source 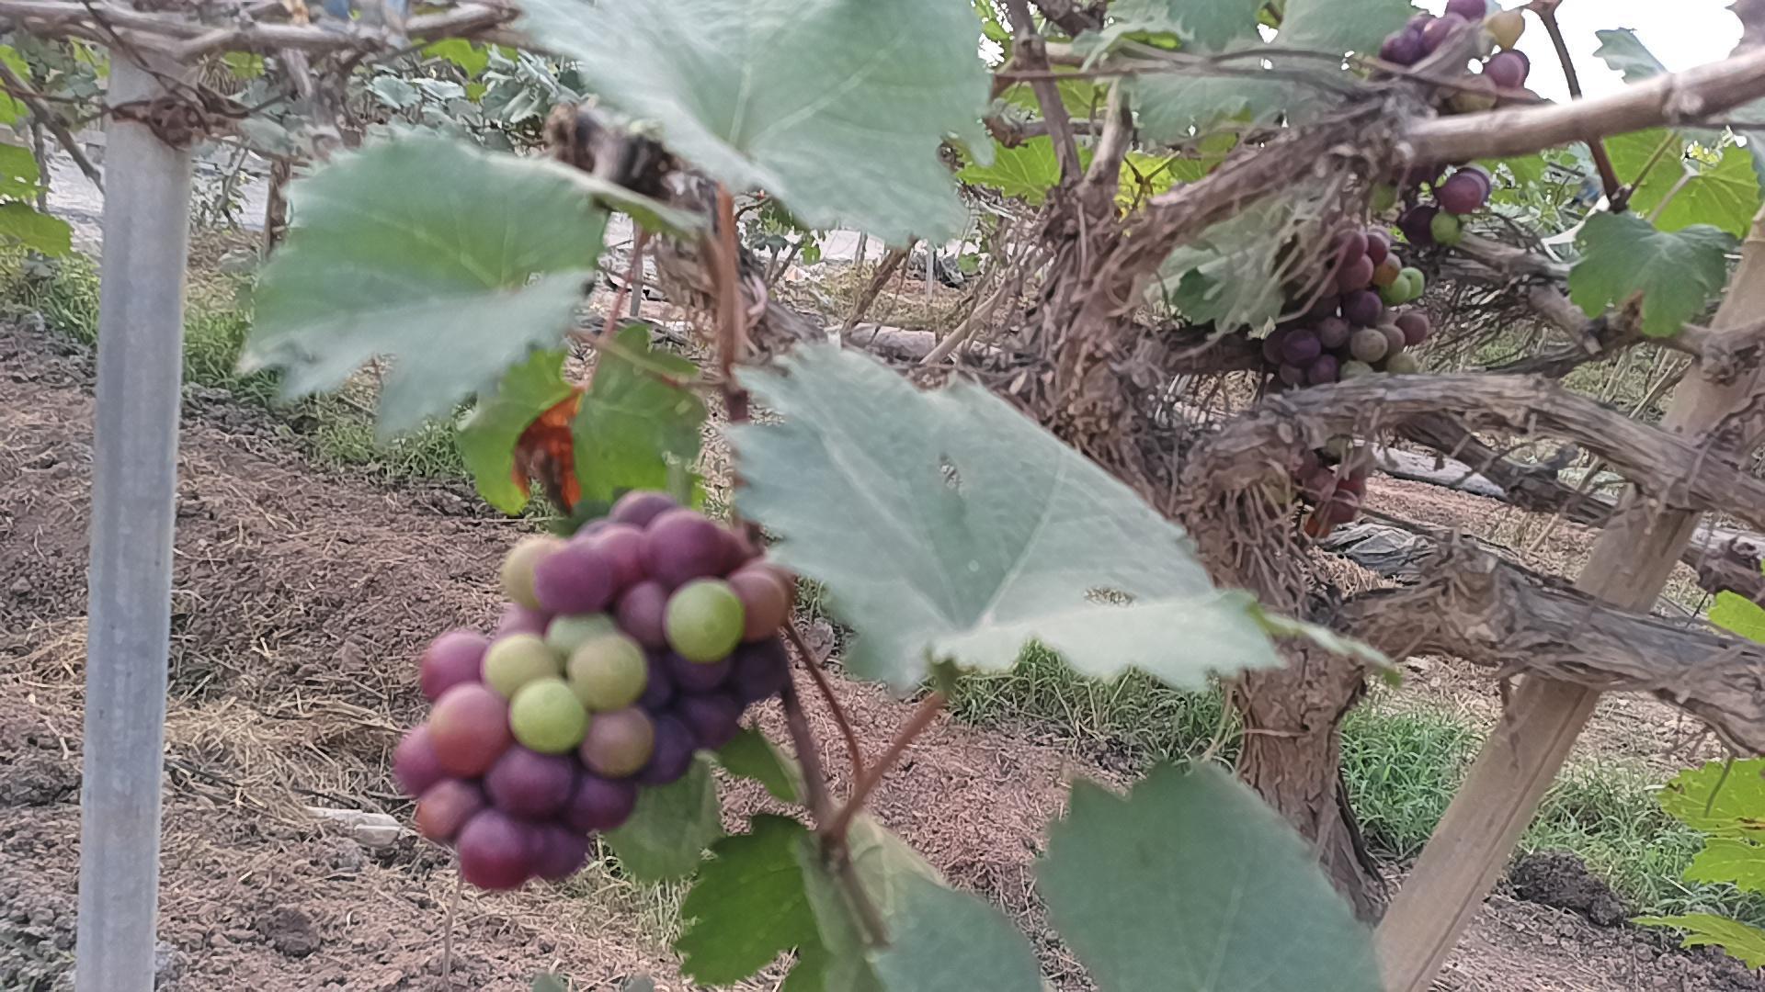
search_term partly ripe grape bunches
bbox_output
[1261,226,1432,537]
[394,493,793,890]
[1366,0,1541,250]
